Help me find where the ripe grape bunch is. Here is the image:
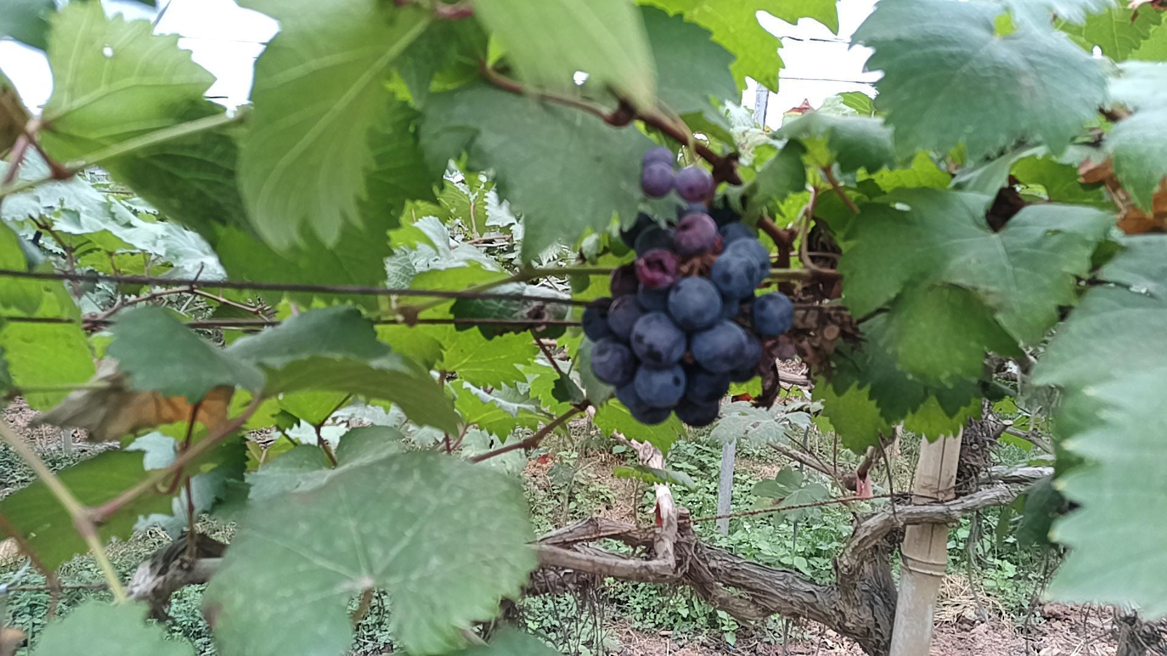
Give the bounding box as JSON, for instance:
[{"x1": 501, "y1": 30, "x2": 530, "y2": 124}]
[{"x1": 582, "y1": 147, "x2": 793, "y2": 426}]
